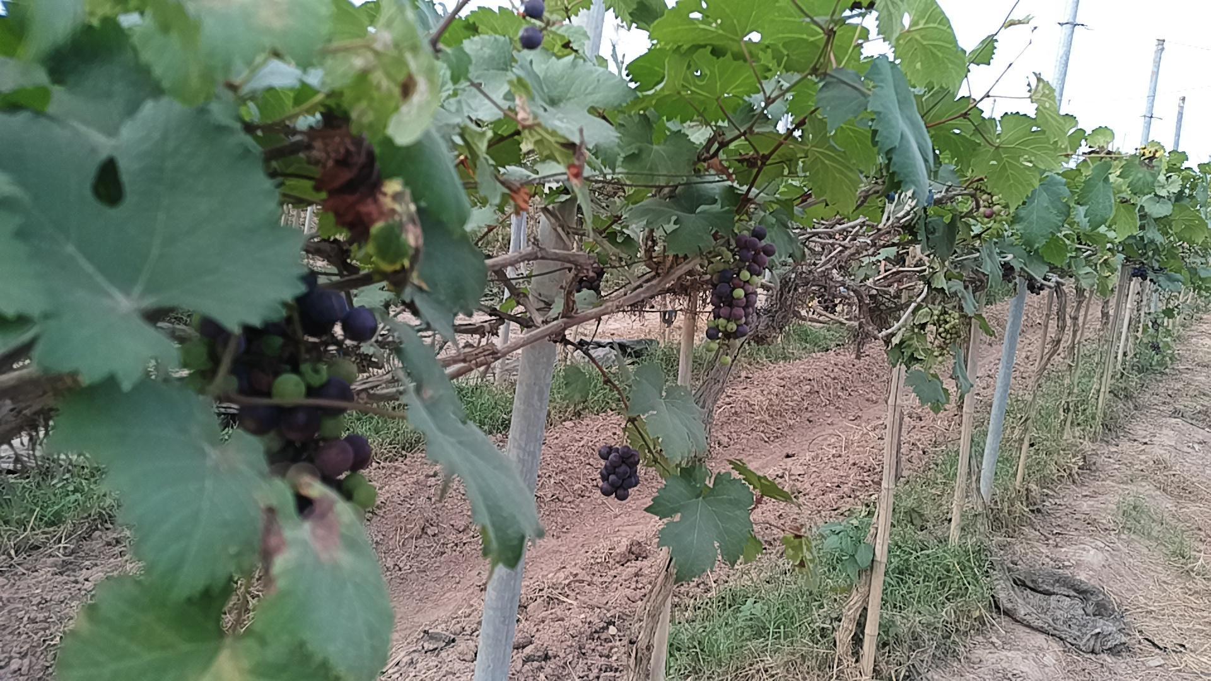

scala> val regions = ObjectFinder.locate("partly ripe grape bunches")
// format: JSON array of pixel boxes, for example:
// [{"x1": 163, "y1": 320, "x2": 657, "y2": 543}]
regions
[
  {"x1": 980, "y1": 194, "x2": 1003, "y2": 218},
  {"x1": 181, "y1": 272, "x2": 376, "y2": 508},
  {"x1": 705, "y1": 226, "x2": 775, "y2": 364}
]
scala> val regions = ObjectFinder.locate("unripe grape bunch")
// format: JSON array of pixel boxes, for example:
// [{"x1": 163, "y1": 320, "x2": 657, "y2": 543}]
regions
[{"x1": 933, "y1": 310, "x2": 962, "y2": 363}]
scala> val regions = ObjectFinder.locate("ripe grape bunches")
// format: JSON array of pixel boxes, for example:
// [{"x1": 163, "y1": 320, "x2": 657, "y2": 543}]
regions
[
  {"x1": 1026, "y1": 279, "x2": 1044, "y2": 294},
  {"x1": 1002, "y1": 261, "x2": 1015, "y2": 283},
  {"x1": 598, "y1": 445, "x2": 640, "y2": 501},
  {"x1": 1130, "y1": 262, "x2": 1148, "y2": 281},
  {"x1": 576, "y1": 264, "x2": 605, "y2": 298},
  {"x1": 518, "y1": 0, "x2": 545, "y2": 49}
]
